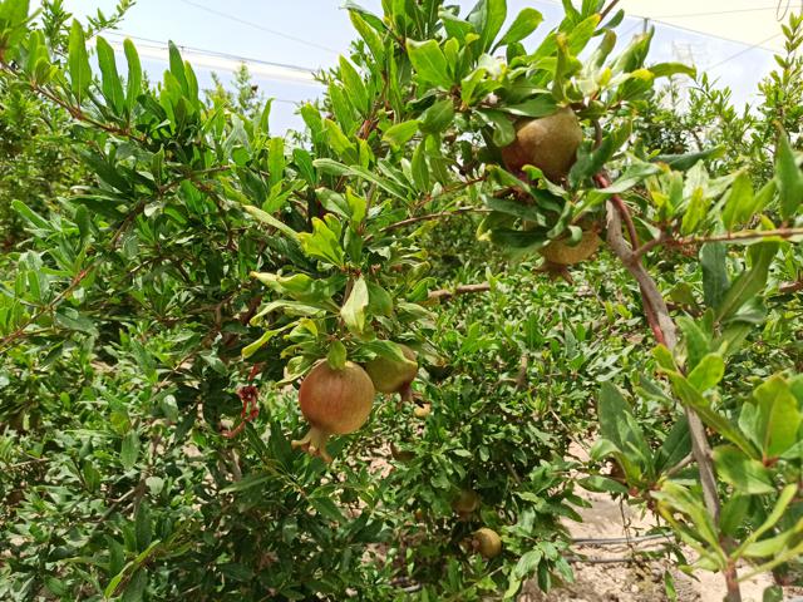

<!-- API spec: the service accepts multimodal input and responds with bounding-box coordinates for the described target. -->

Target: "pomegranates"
[364,344,429,409]
[453,492,479,520]
[414,403,432,418]
[492,109,583,202]
[531,228,600,286]
[290,360,376,463]
[464,525,502,558]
